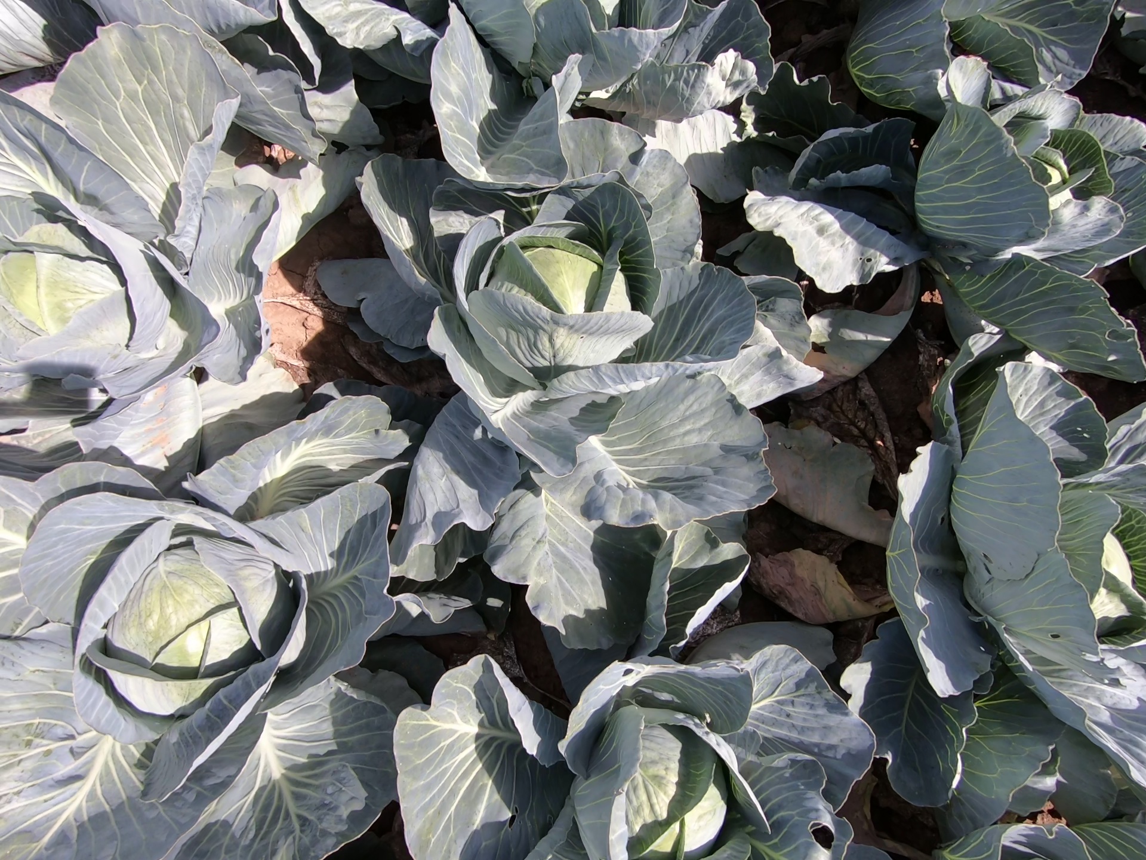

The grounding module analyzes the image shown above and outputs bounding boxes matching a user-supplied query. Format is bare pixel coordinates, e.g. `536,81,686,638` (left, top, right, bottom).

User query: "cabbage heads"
2,221,168,373
470,235,629,377
970,152,1071,234
102,543,288,717
592,711,732,858
461,0,621,78
982,515,1133,644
